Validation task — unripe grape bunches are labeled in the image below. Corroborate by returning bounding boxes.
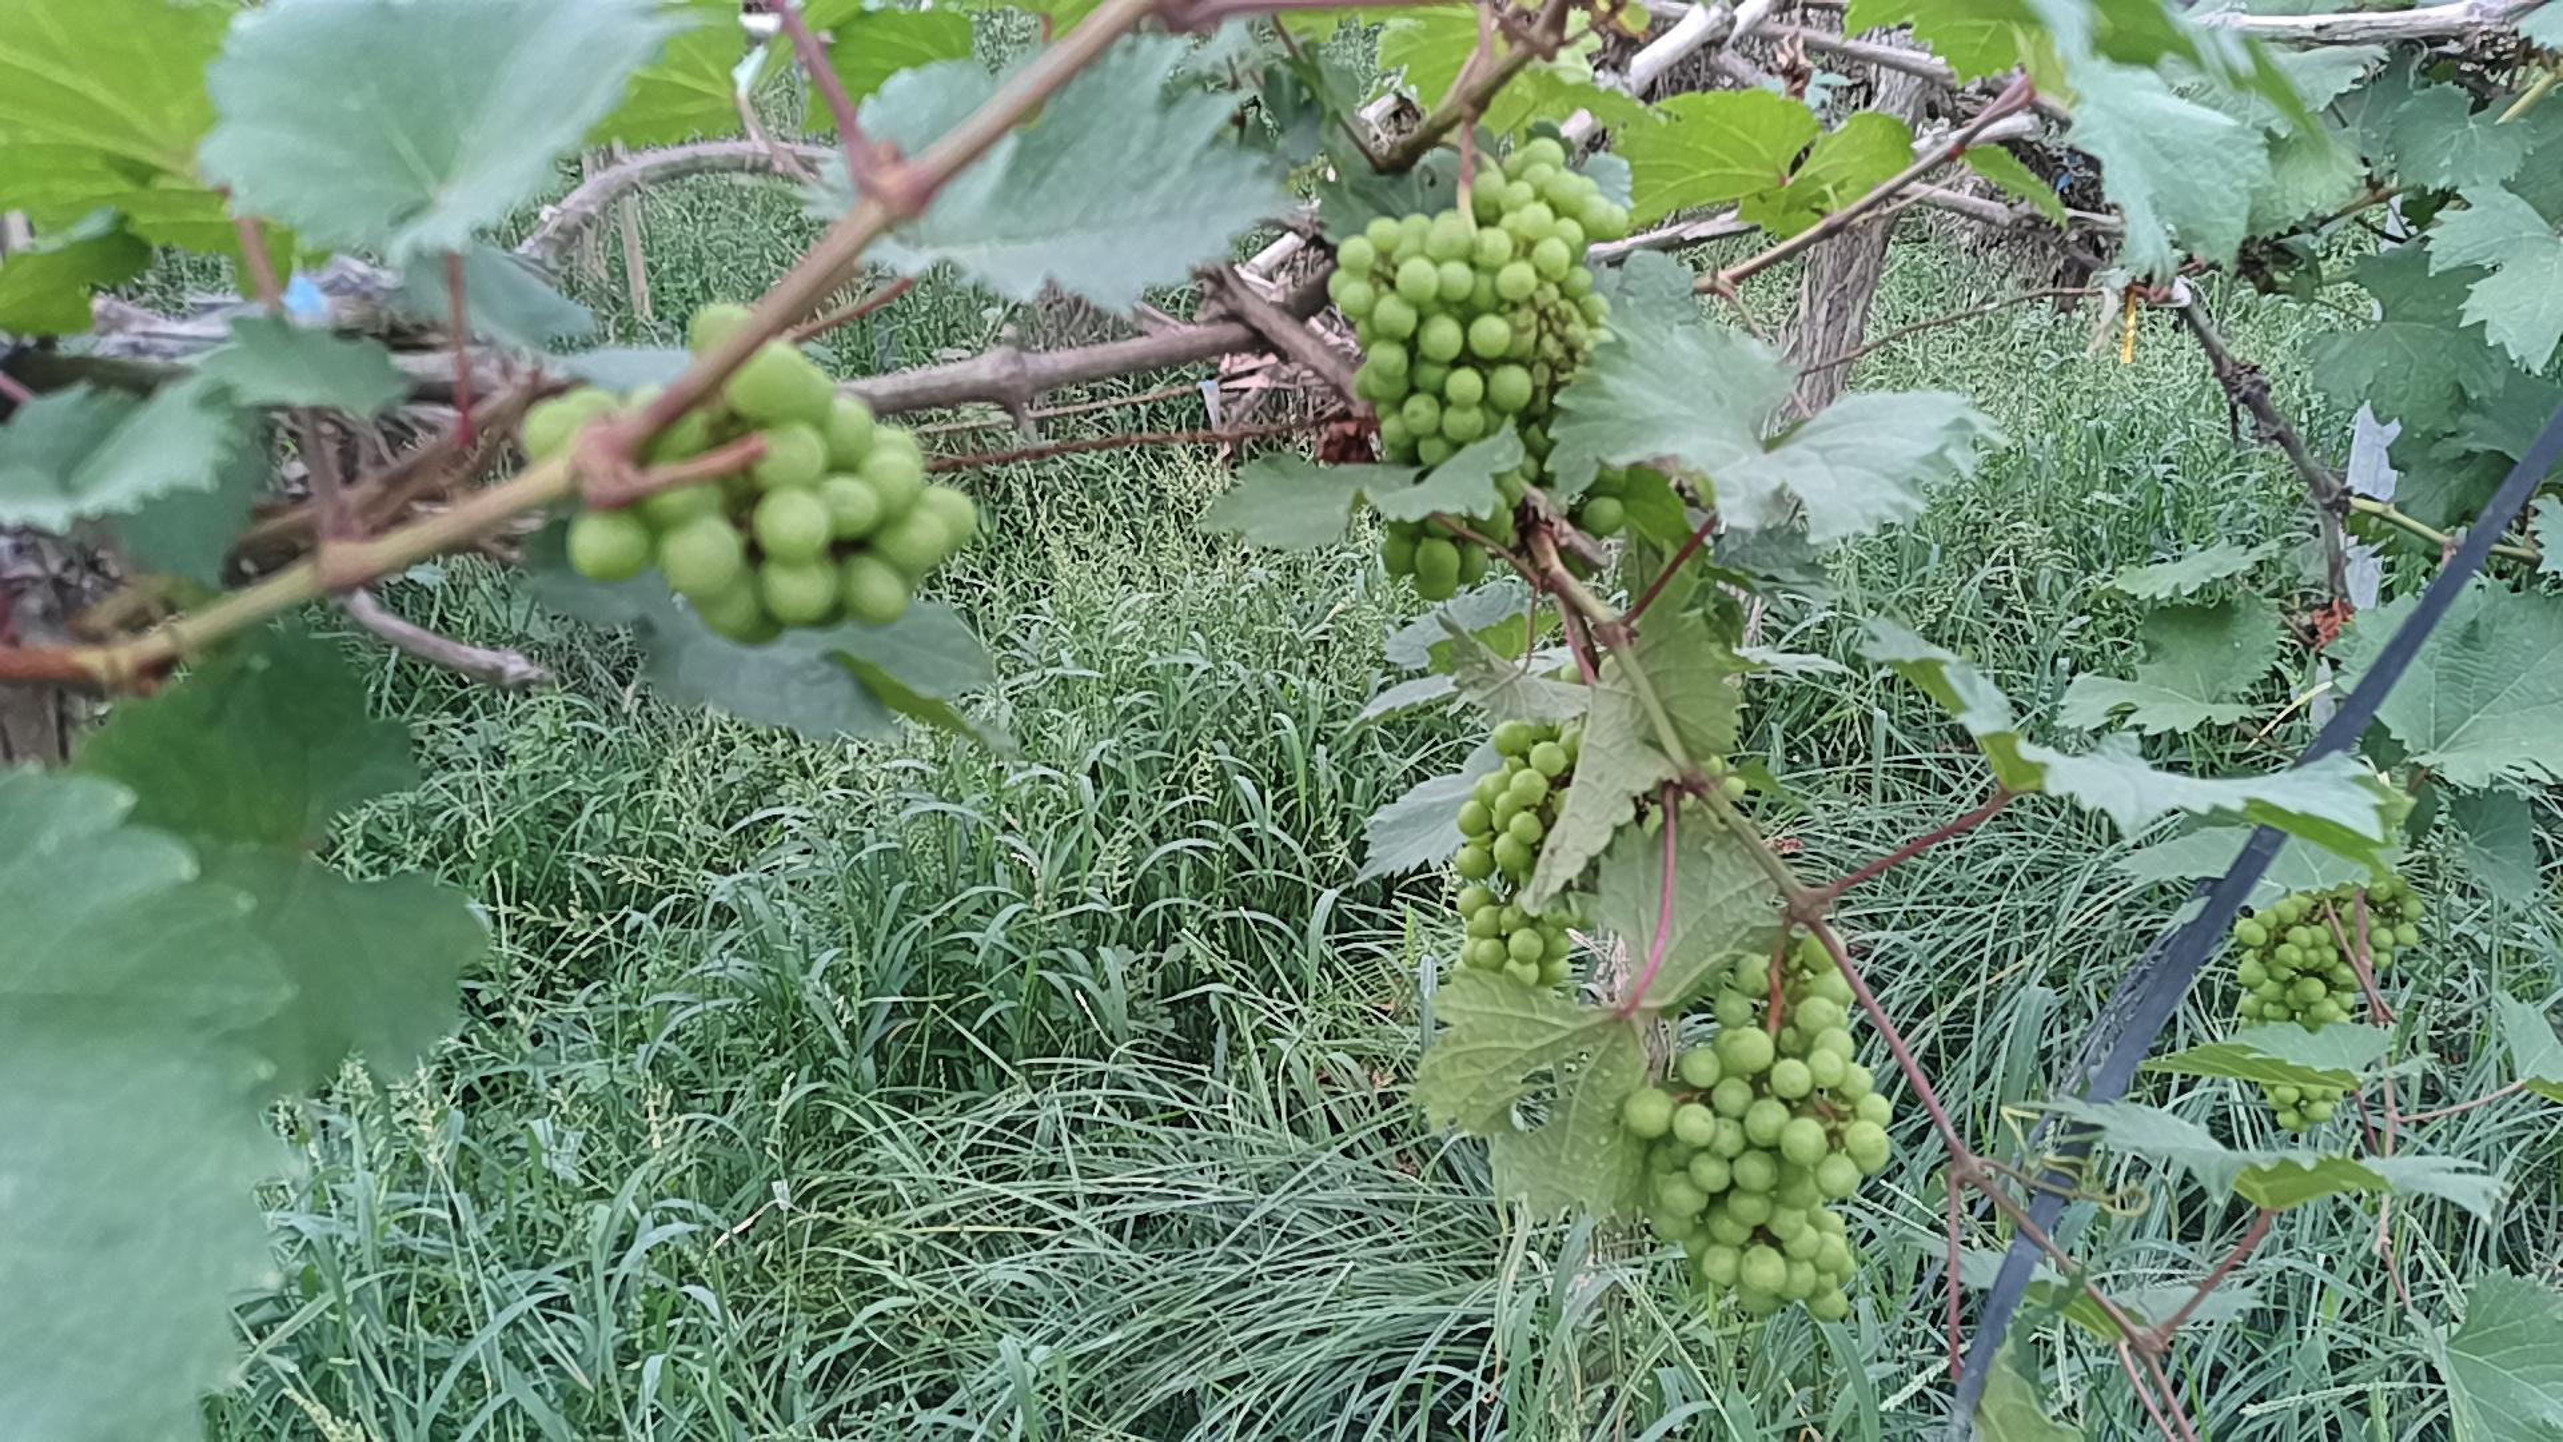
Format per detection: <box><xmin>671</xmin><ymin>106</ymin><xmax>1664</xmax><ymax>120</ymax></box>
<box><xmin>522</xmin><ymin>306</ymin><xmax>973</xmax><ymax>642</ymax></box>
<box><xmin>1452</xmin><ymin>718</ymin><xmax>1742</xmax><ymax>987</ymax></box>
<box><xmin>1618</xmin><ymin>937</ymin><xmax>1889</xmax><ymax>1315</ymax></box>
<box><xmin>2236</xmin><ymin>879</ymin><xmax>2420</xmax><ymax>1130</ymax></box>
<box><xmin>1330</xmin><ymin>135</ymin><xmax>1625</xmax><ymax>599</ymax></box>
